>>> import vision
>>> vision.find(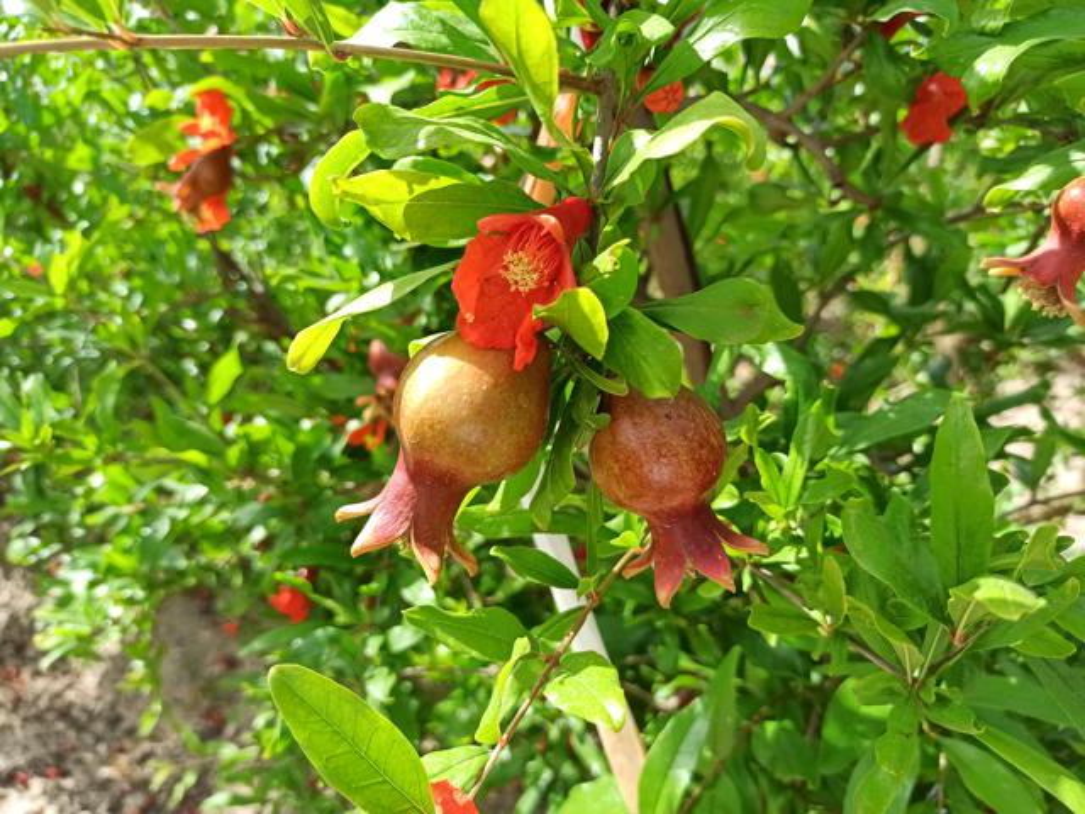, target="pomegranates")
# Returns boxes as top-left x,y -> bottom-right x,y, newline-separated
332,329 -> 551,583
978,175 -> 1085,324
185,144 -> 236,220
587,383 -> 770,610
